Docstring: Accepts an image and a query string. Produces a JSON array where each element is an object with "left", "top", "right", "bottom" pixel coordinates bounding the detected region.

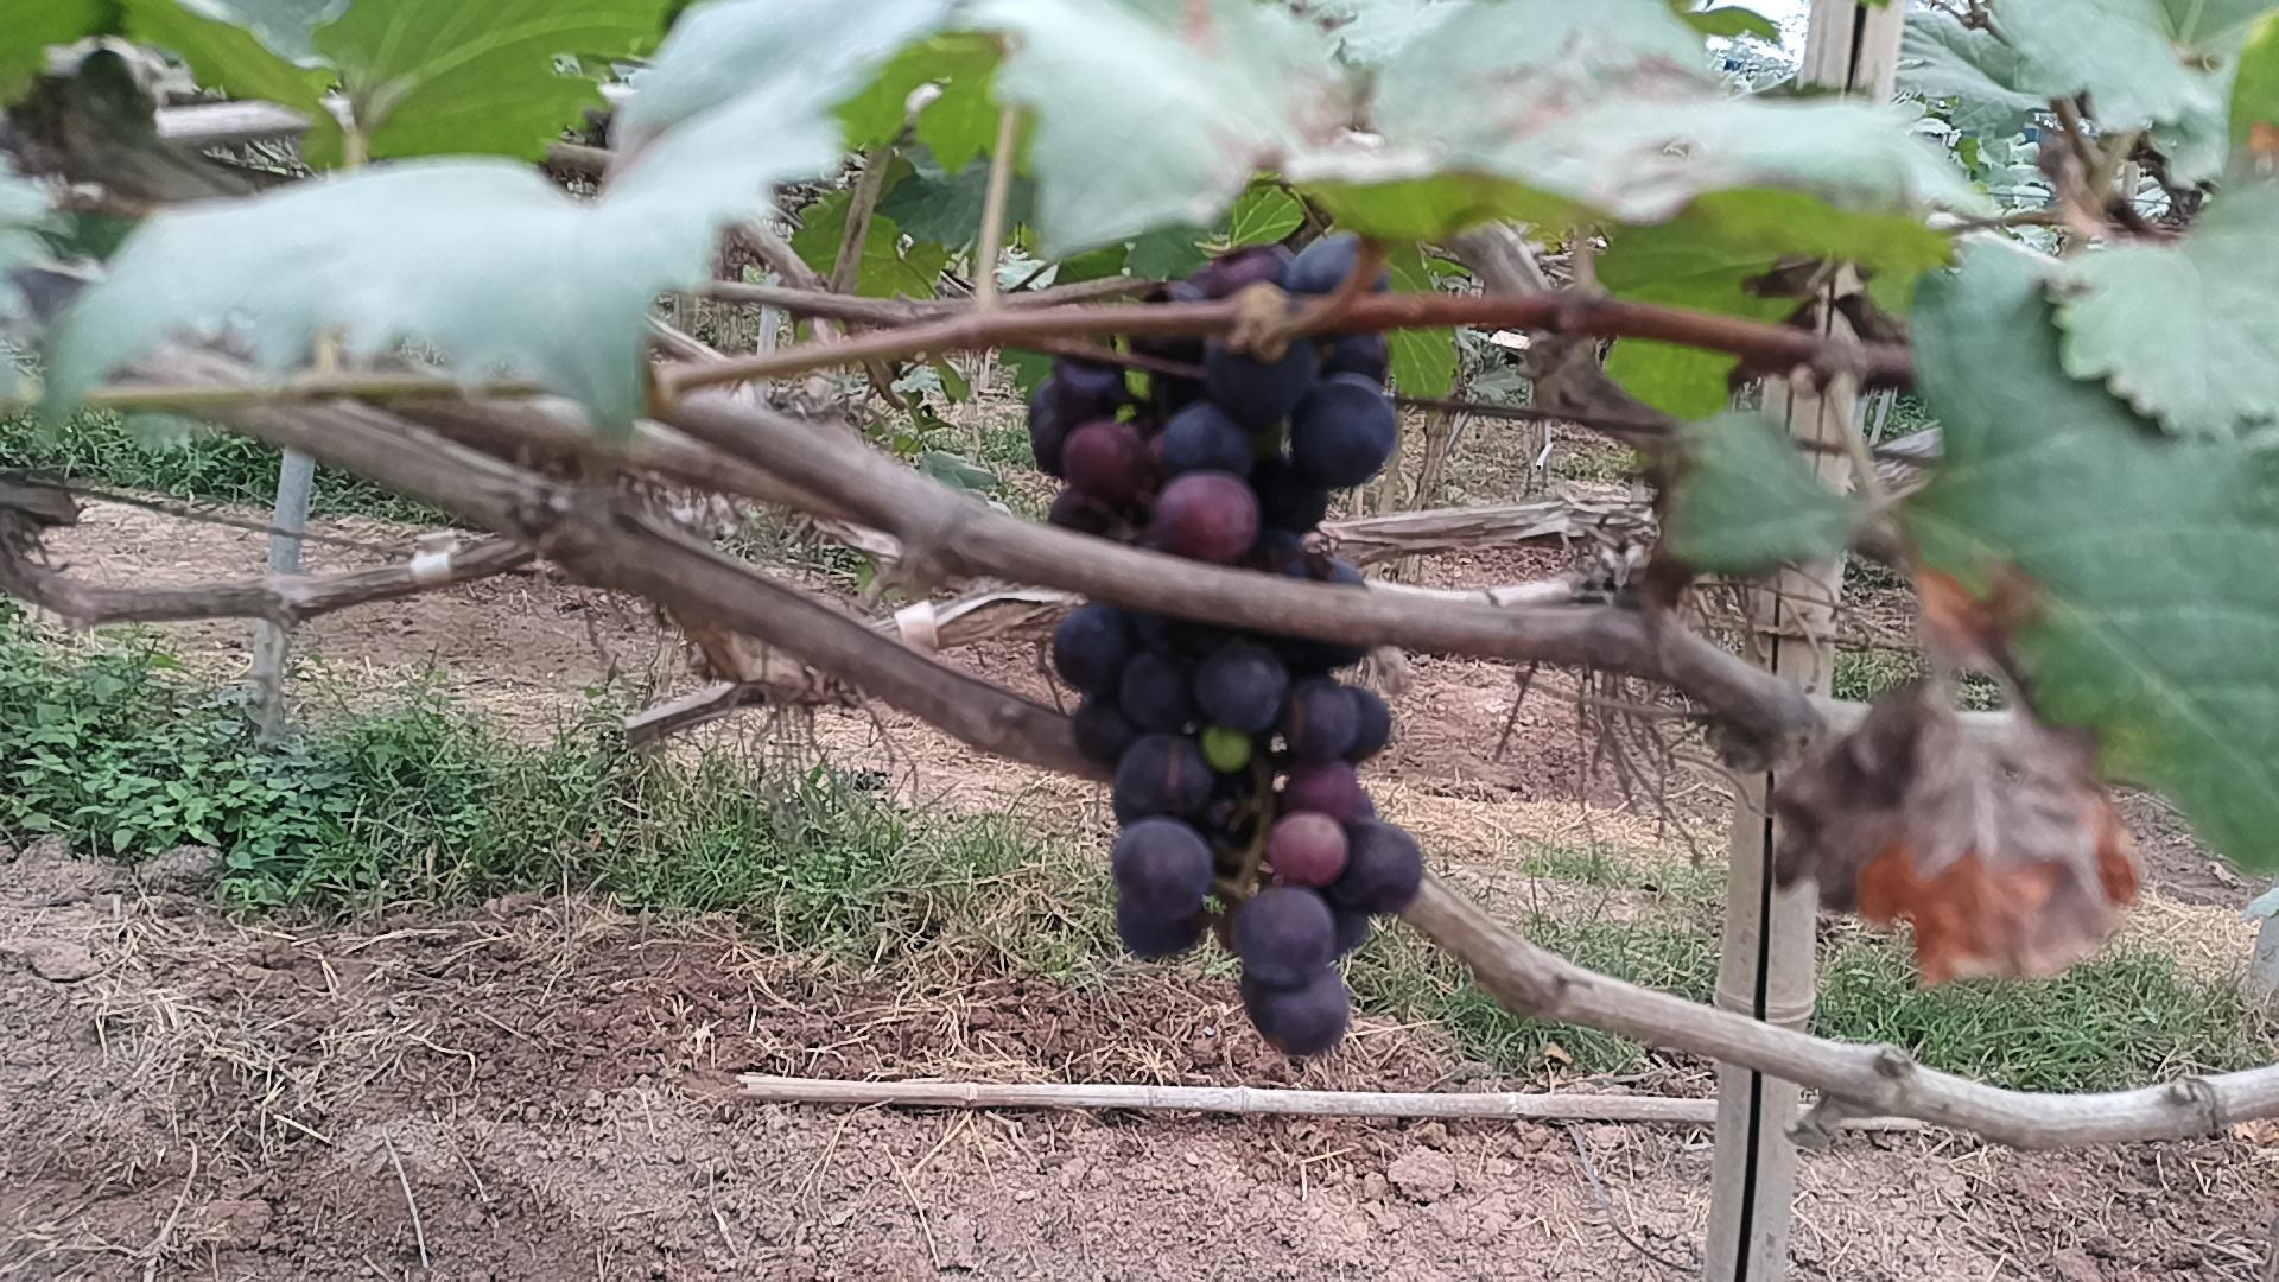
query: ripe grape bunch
[{"left": 1028, "top": 234, "right": 1422, "bottom": 1053}]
